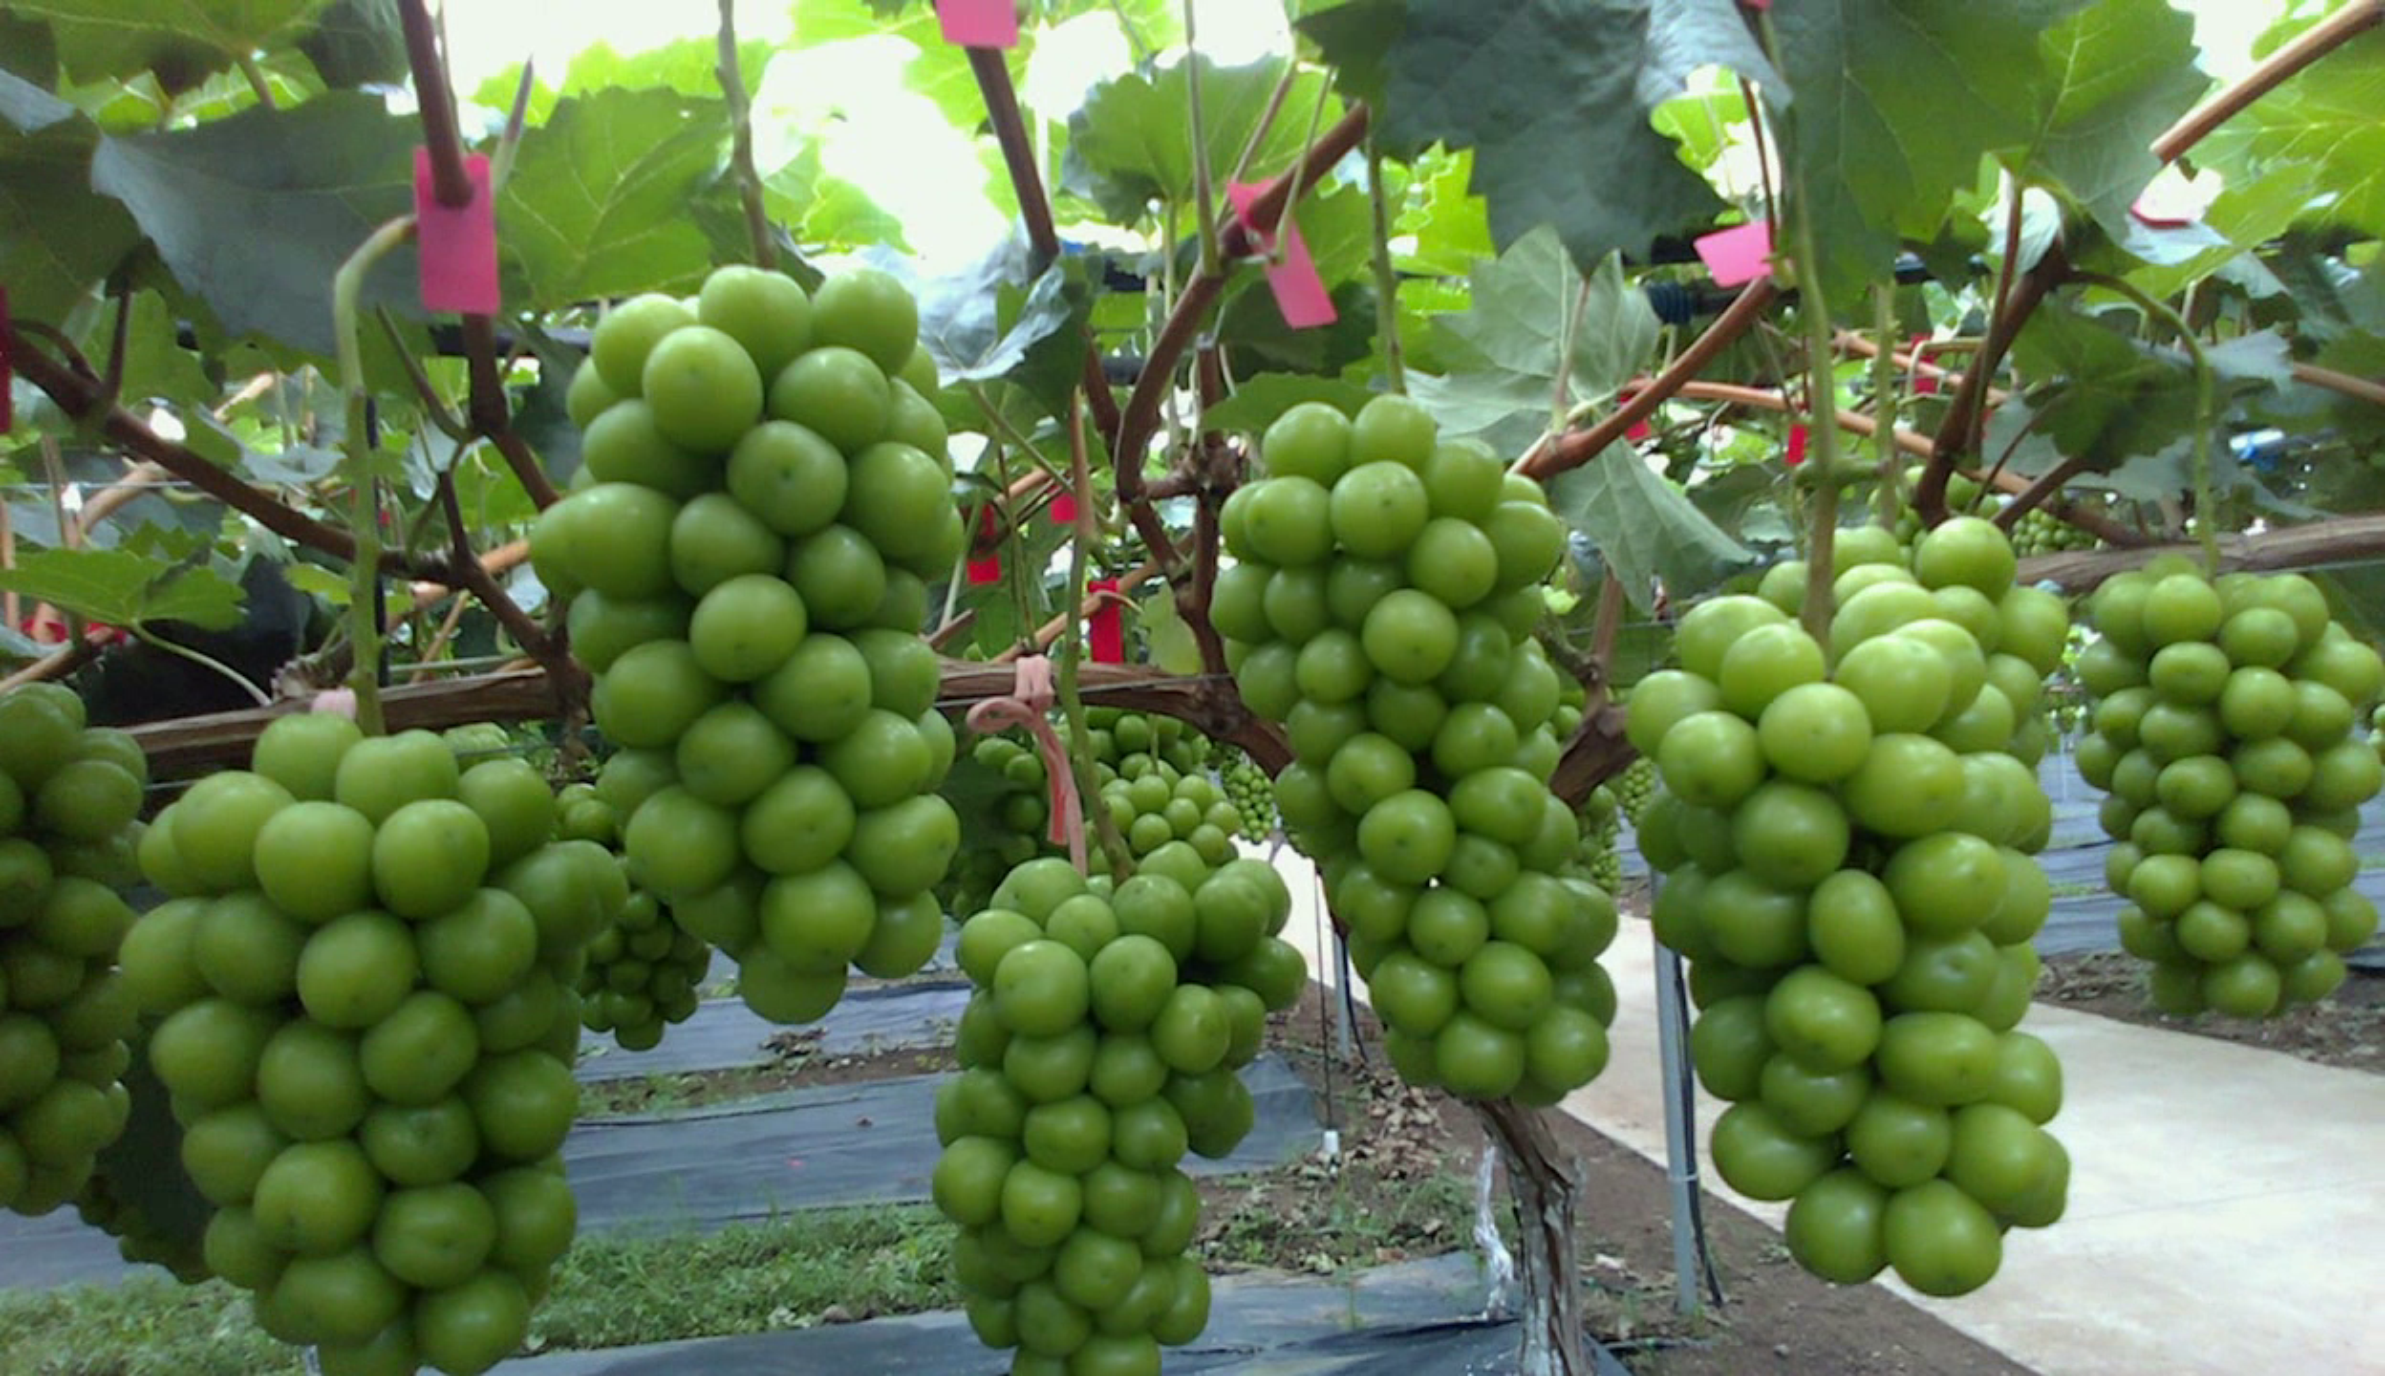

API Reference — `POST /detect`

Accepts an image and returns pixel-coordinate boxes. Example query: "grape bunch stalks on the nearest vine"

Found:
[1756,11,1892,654]
[713,0,782,268]
[1053,411,1137,887]
[1366,109,1407,390]
[336,212,415,738]
[2066,268,2221,575]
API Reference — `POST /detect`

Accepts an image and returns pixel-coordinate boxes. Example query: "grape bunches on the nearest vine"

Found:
[1210,392,1619,1107]
[527,266,963,1028]
[120,711,631,1374]
[2075,550,2383,1022]
[0,680,147,1217]
[931,841,1309,1374]
[1622,514,2072,1298]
